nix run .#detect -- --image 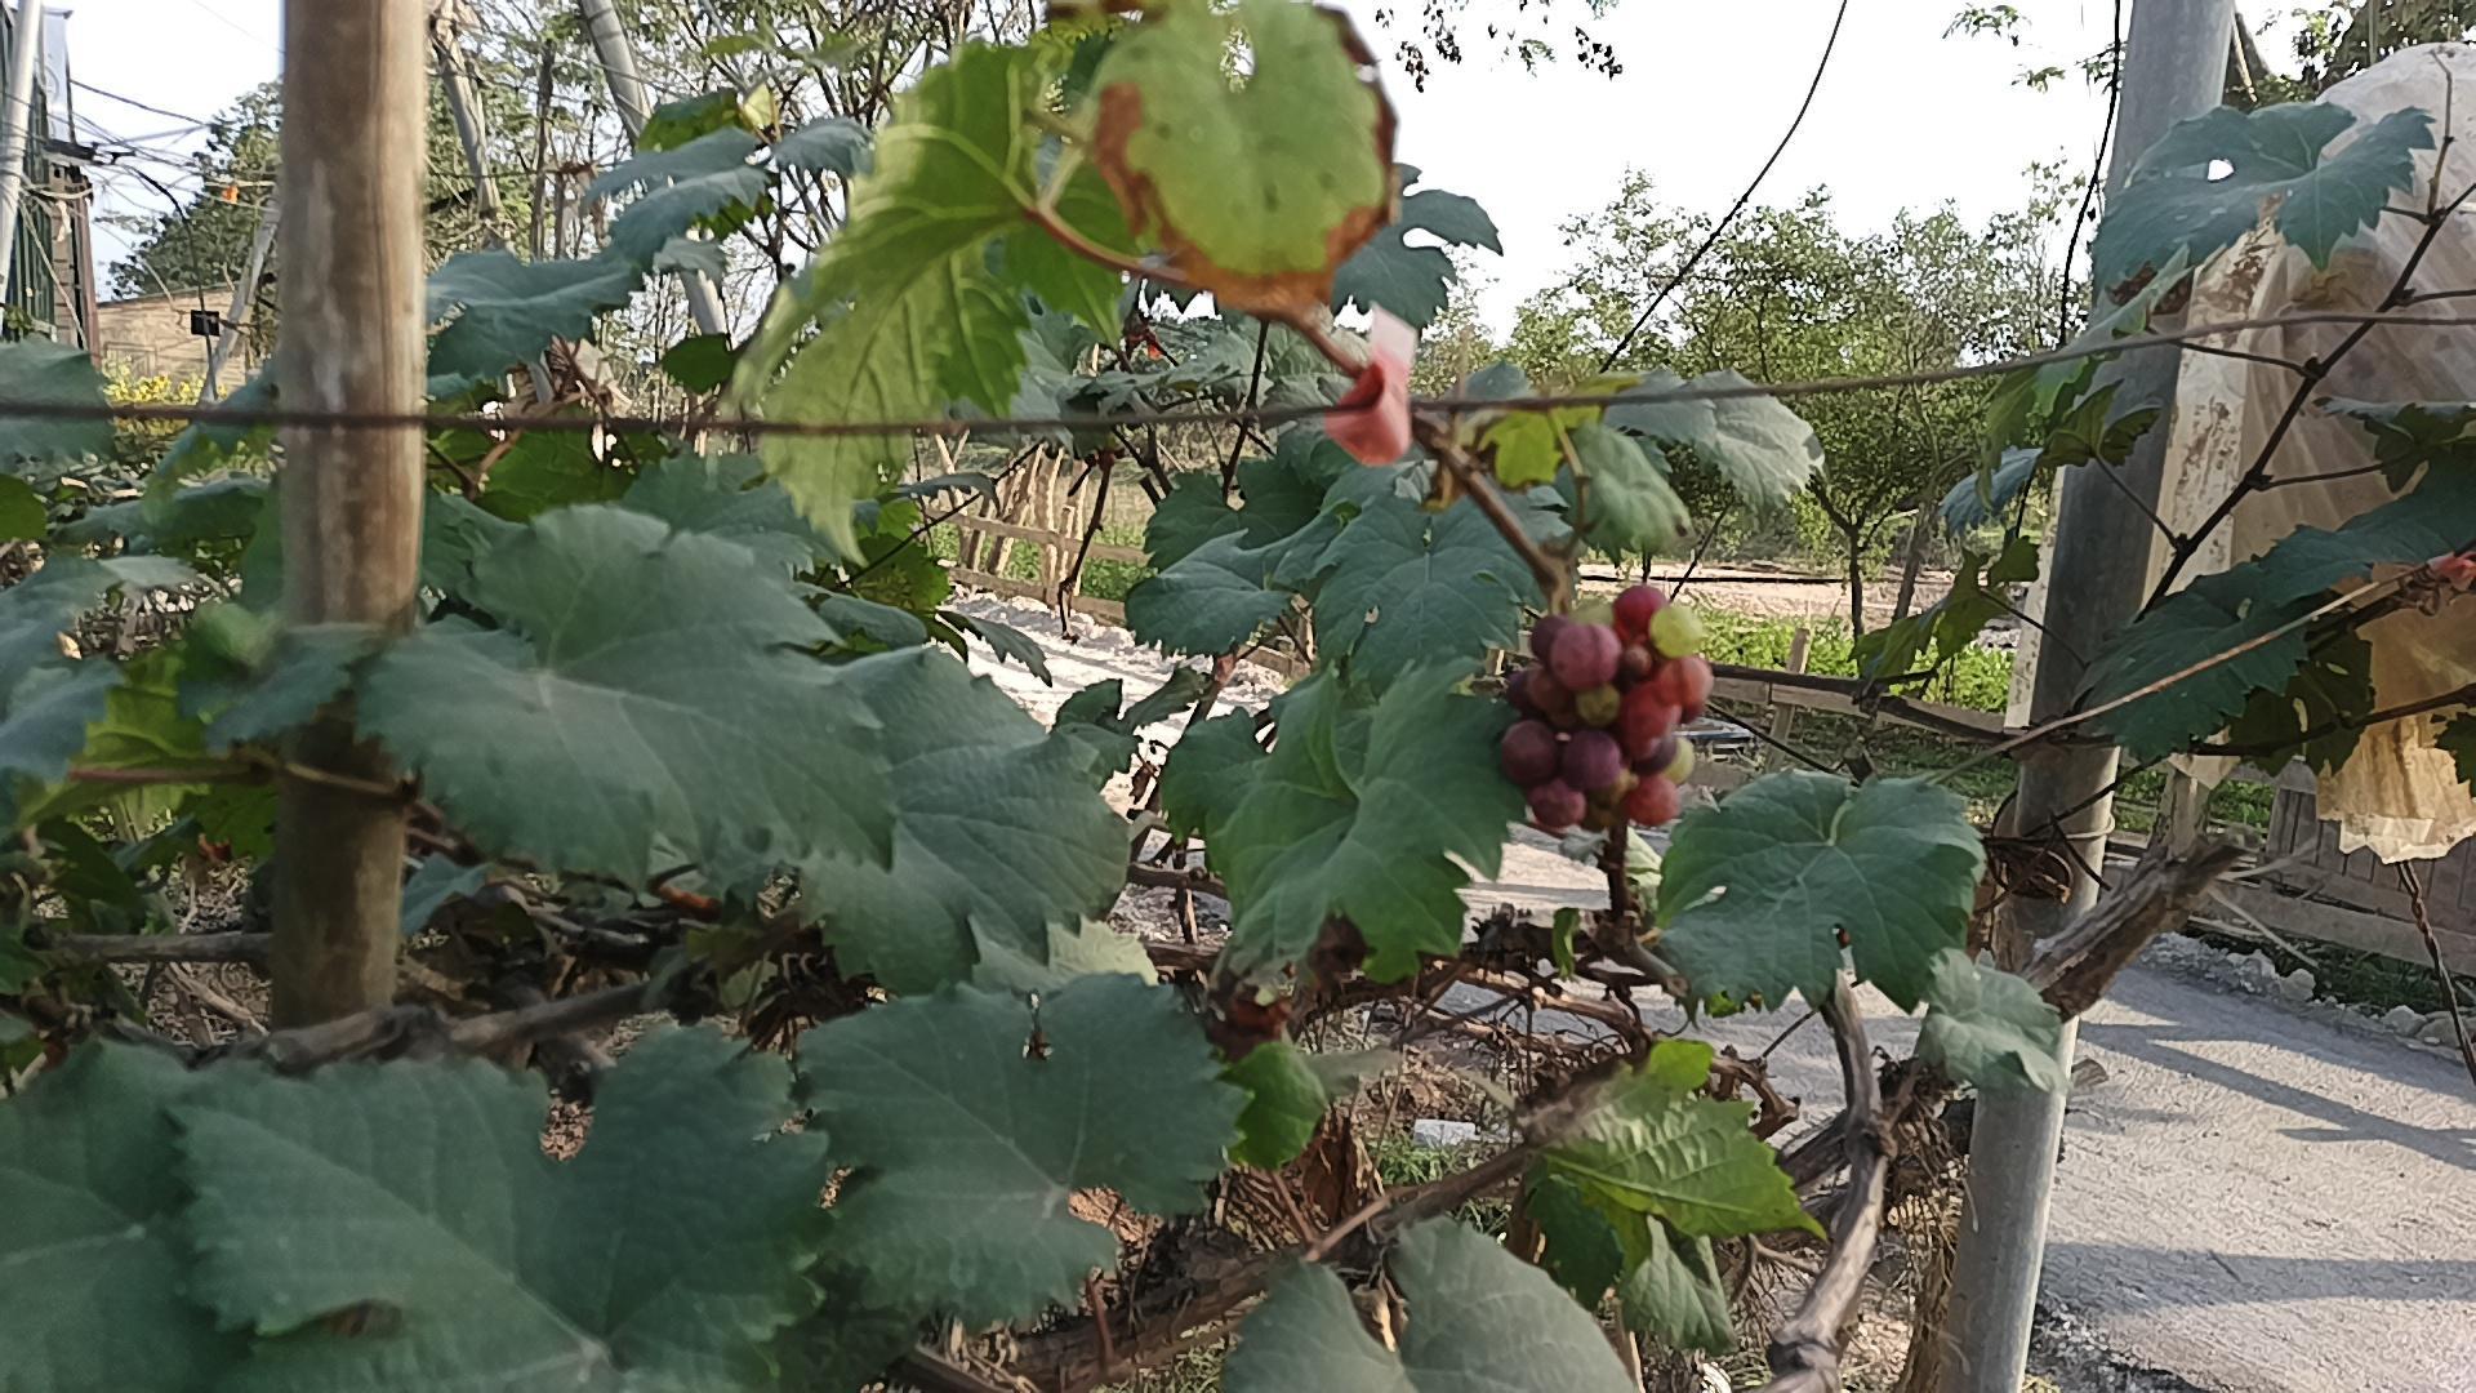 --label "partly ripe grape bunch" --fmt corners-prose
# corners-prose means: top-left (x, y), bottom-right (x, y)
top-left (1502, 587), bottom-right (1711, 833)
